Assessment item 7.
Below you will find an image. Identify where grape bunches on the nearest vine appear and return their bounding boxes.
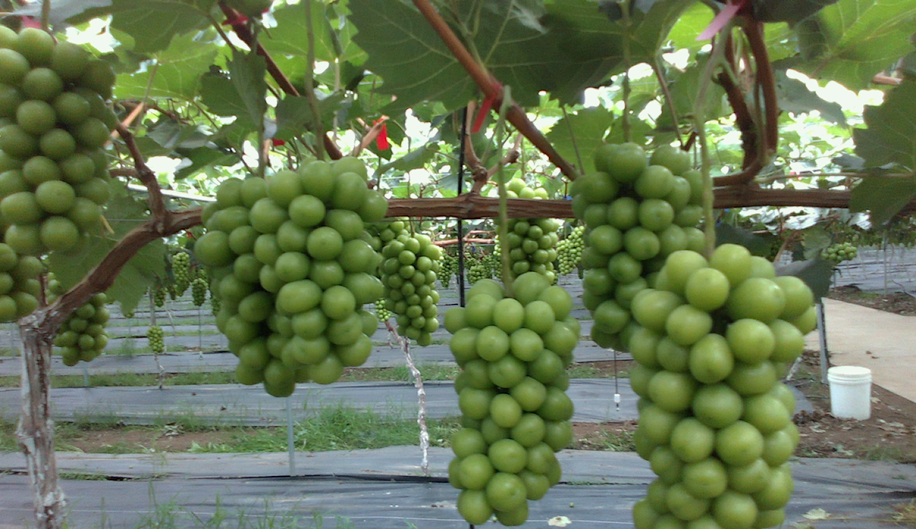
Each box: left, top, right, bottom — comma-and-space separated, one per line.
571, 142, 702, 352
444, 273, 579, 527
1, 24, 118, 257
195, 177, 310, 397
250, 157, 385, 385
629, 242, 816, 528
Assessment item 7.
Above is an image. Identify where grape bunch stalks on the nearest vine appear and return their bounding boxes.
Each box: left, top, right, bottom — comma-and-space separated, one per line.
40, 2, 49, 28
301, 1, 326, 159
495, 85, 514, 299
247, 17, 264, 175
682, 22, 738, 260
617, 1, 632, 141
